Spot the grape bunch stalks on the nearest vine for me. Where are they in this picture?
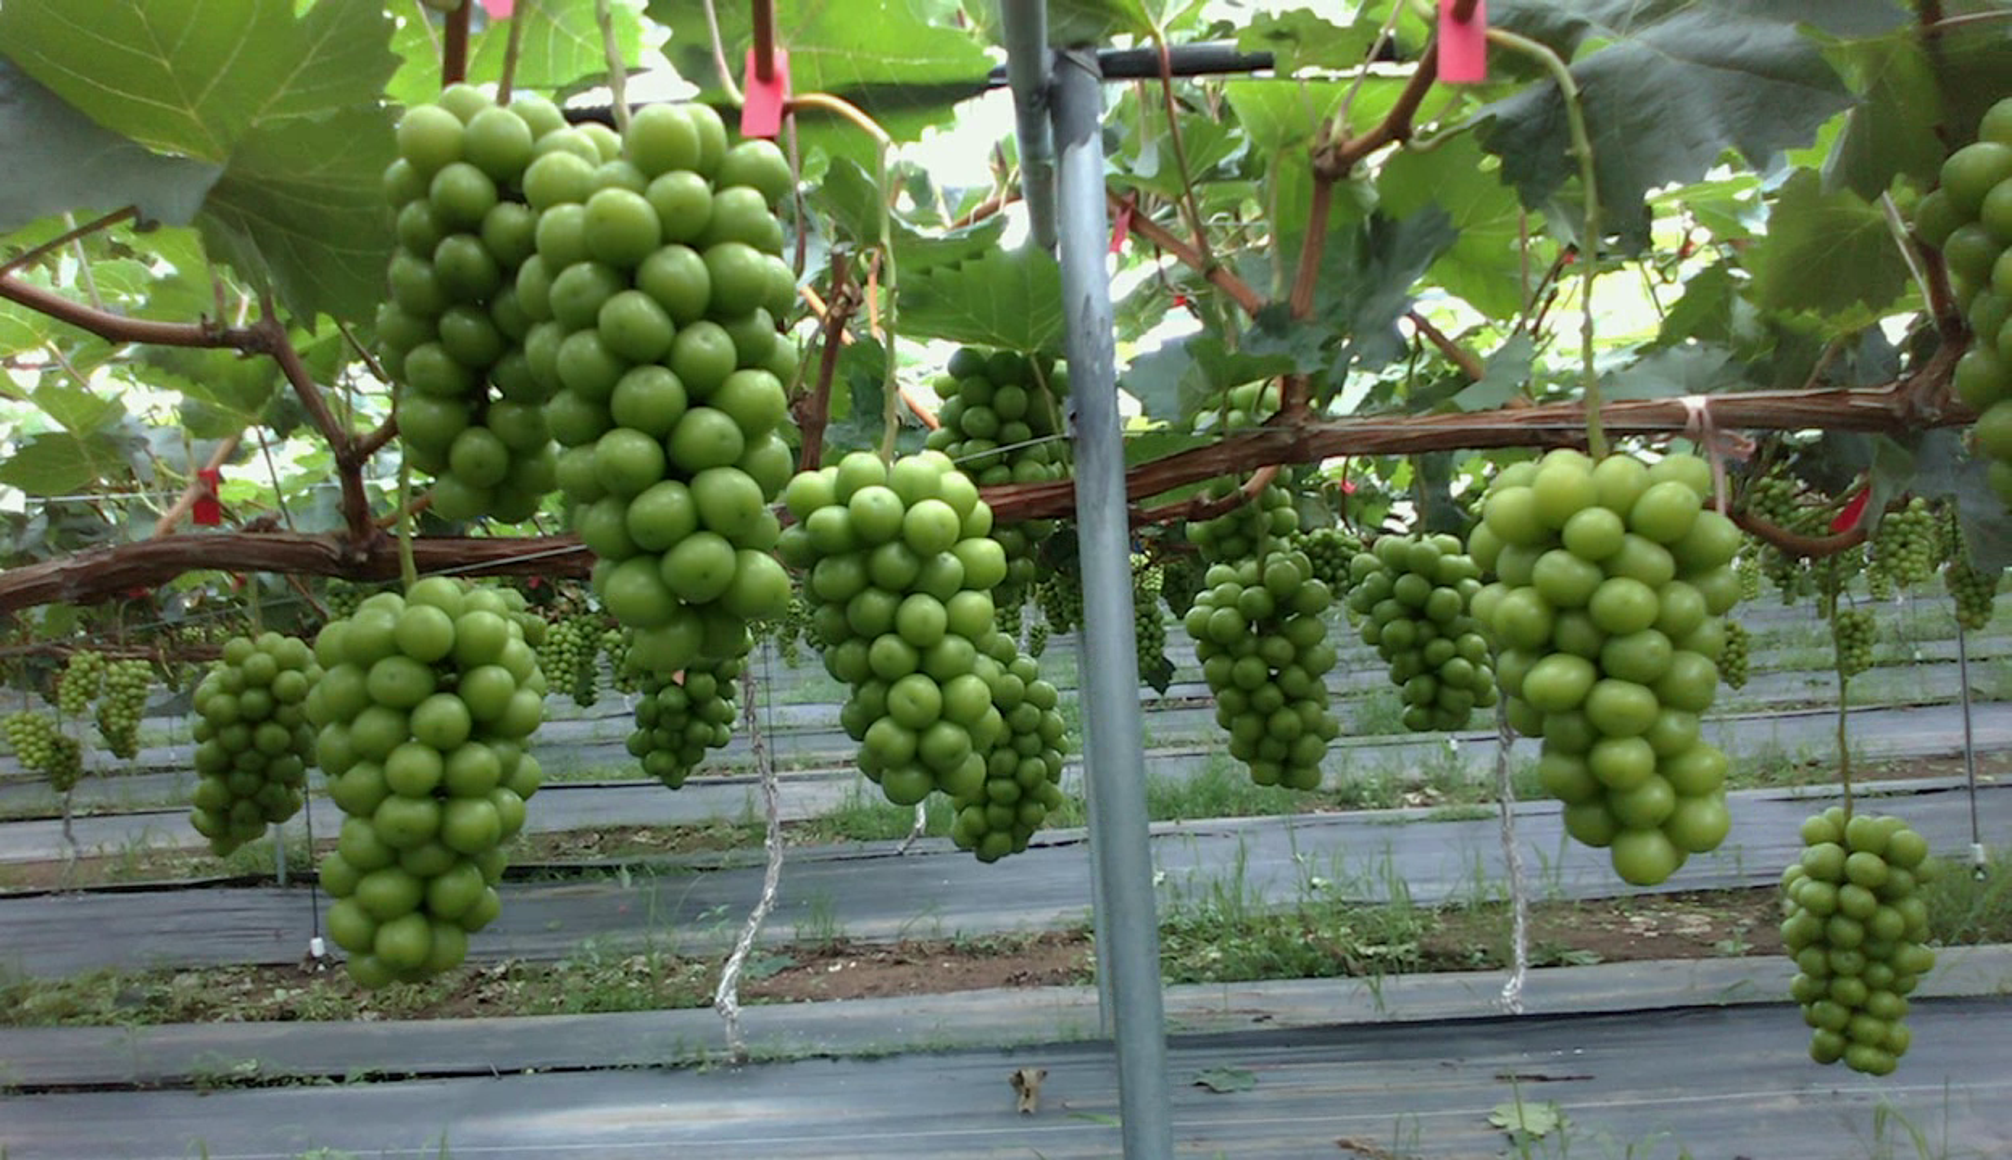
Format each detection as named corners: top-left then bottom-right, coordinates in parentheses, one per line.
top-left (1485, 26), bottom-right (1609, 464)
top-left (395, 453), bottom-right (419, 593)
top-left (788, 92), bottom-right (898, 466)
top-left (493, 0), bottom-right (540, 108)
top-left (595, 0), bottom-right (634, 139)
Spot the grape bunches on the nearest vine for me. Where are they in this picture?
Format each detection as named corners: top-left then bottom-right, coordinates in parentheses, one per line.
top-left (775, 449), bottom-right (1006, 806)
top-left (377, 82), bottom-right (567, 527)
top-left (1467, 448), bottom-right (1741, 888)
top-left (303, 577), bottom-right (548, 991)
top-left (516, 103), bottom-right (800, 675)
